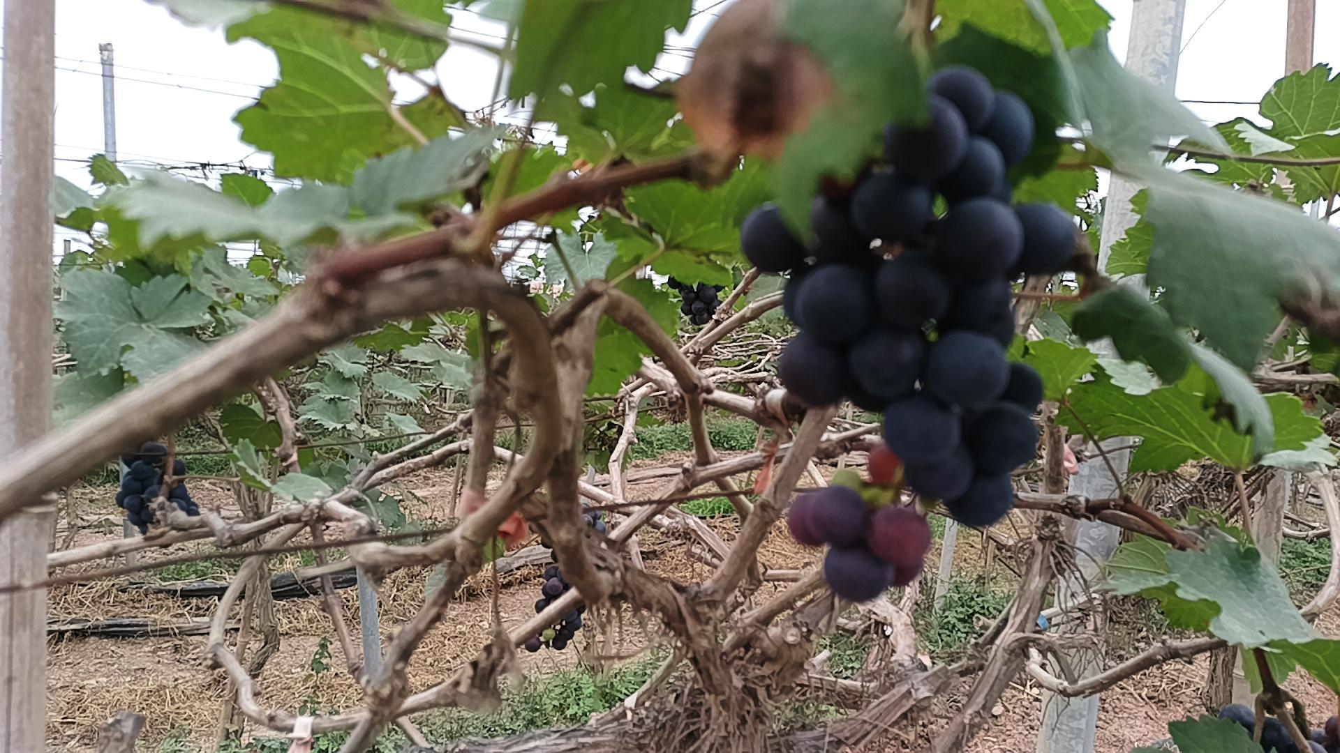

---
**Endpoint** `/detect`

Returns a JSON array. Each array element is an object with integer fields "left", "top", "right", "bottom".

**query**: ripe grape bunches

[
  {"left": 1219, "top": 704, "right": 1339, "bottom": 752},
  {"left": 116, "top": 441, "right": 200, "bottom": 535},
  {"left": 667, "top": 276, "right": 724, "bottom": 326}
]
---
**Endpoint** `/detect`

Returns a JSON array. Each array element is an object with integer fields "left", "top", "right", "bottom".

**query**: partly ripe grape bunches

[
  {"left": 741, "top": 68, "right": 1076, "bottom": 599},
  {"left": 526, "top": 503, "right": 606, "bottom": 654}
]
